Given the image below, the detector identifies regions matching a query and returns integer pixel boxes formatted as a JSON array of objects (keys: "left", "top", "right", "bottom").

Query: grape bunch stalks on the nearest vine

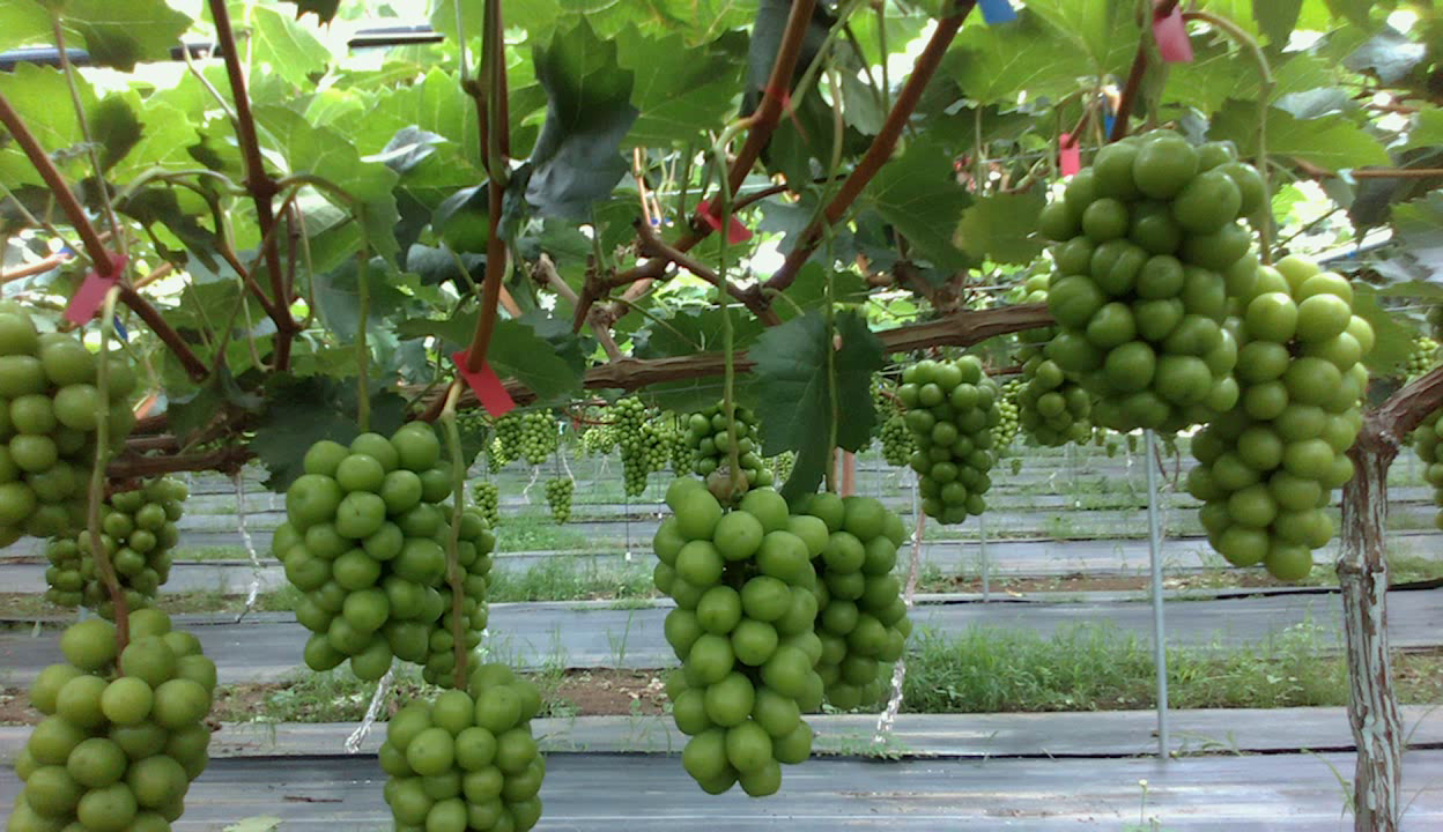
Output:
[
  {"left": 442, "top": 377, "right": 467, "bottom": 691},
  {"left": 87, "top": 285, "right": 131, "bottom": 676},
  {"left": 1139, "top": 0, "right": 1168, "bottom": 132},
  {"left": 711, "top": 118, "right": 752, "bottom": 511},
  {"left": 1181, "top": 9, "right": 1276, "bottom": 266},
  {"left": 282, "top": 173, "right": 371, "bottom": 434},
  {"left": 819, "top": 215, "right": 839, "bottom": 492}
]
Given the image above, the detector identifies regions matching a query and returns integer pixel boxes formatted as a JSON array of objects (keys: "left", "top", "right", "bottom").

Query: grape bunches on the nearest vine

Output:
[
  {"left": 269, "top": 421, "right": 453, "bottom": 682},
  {"left": 377, "top": 663, "right": 545, "bottom": 831},
  {"left": 1037, "top": 128, "right": 1265, "bottom": 434},
  {"left": 1, "top": 298, "right": 138, "bottom": 549},
  {"left": 5, "top": 608, "right": 216, "bottom": 831},
  {"left": 802, "top": 493, "right": 912, "bottom": 711},
  {"left": 652, "top": 467, "right": 829, "bottom": 796},
  {"left": 1187, "top": 253, "right": 1375, "bottom": 581}
]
